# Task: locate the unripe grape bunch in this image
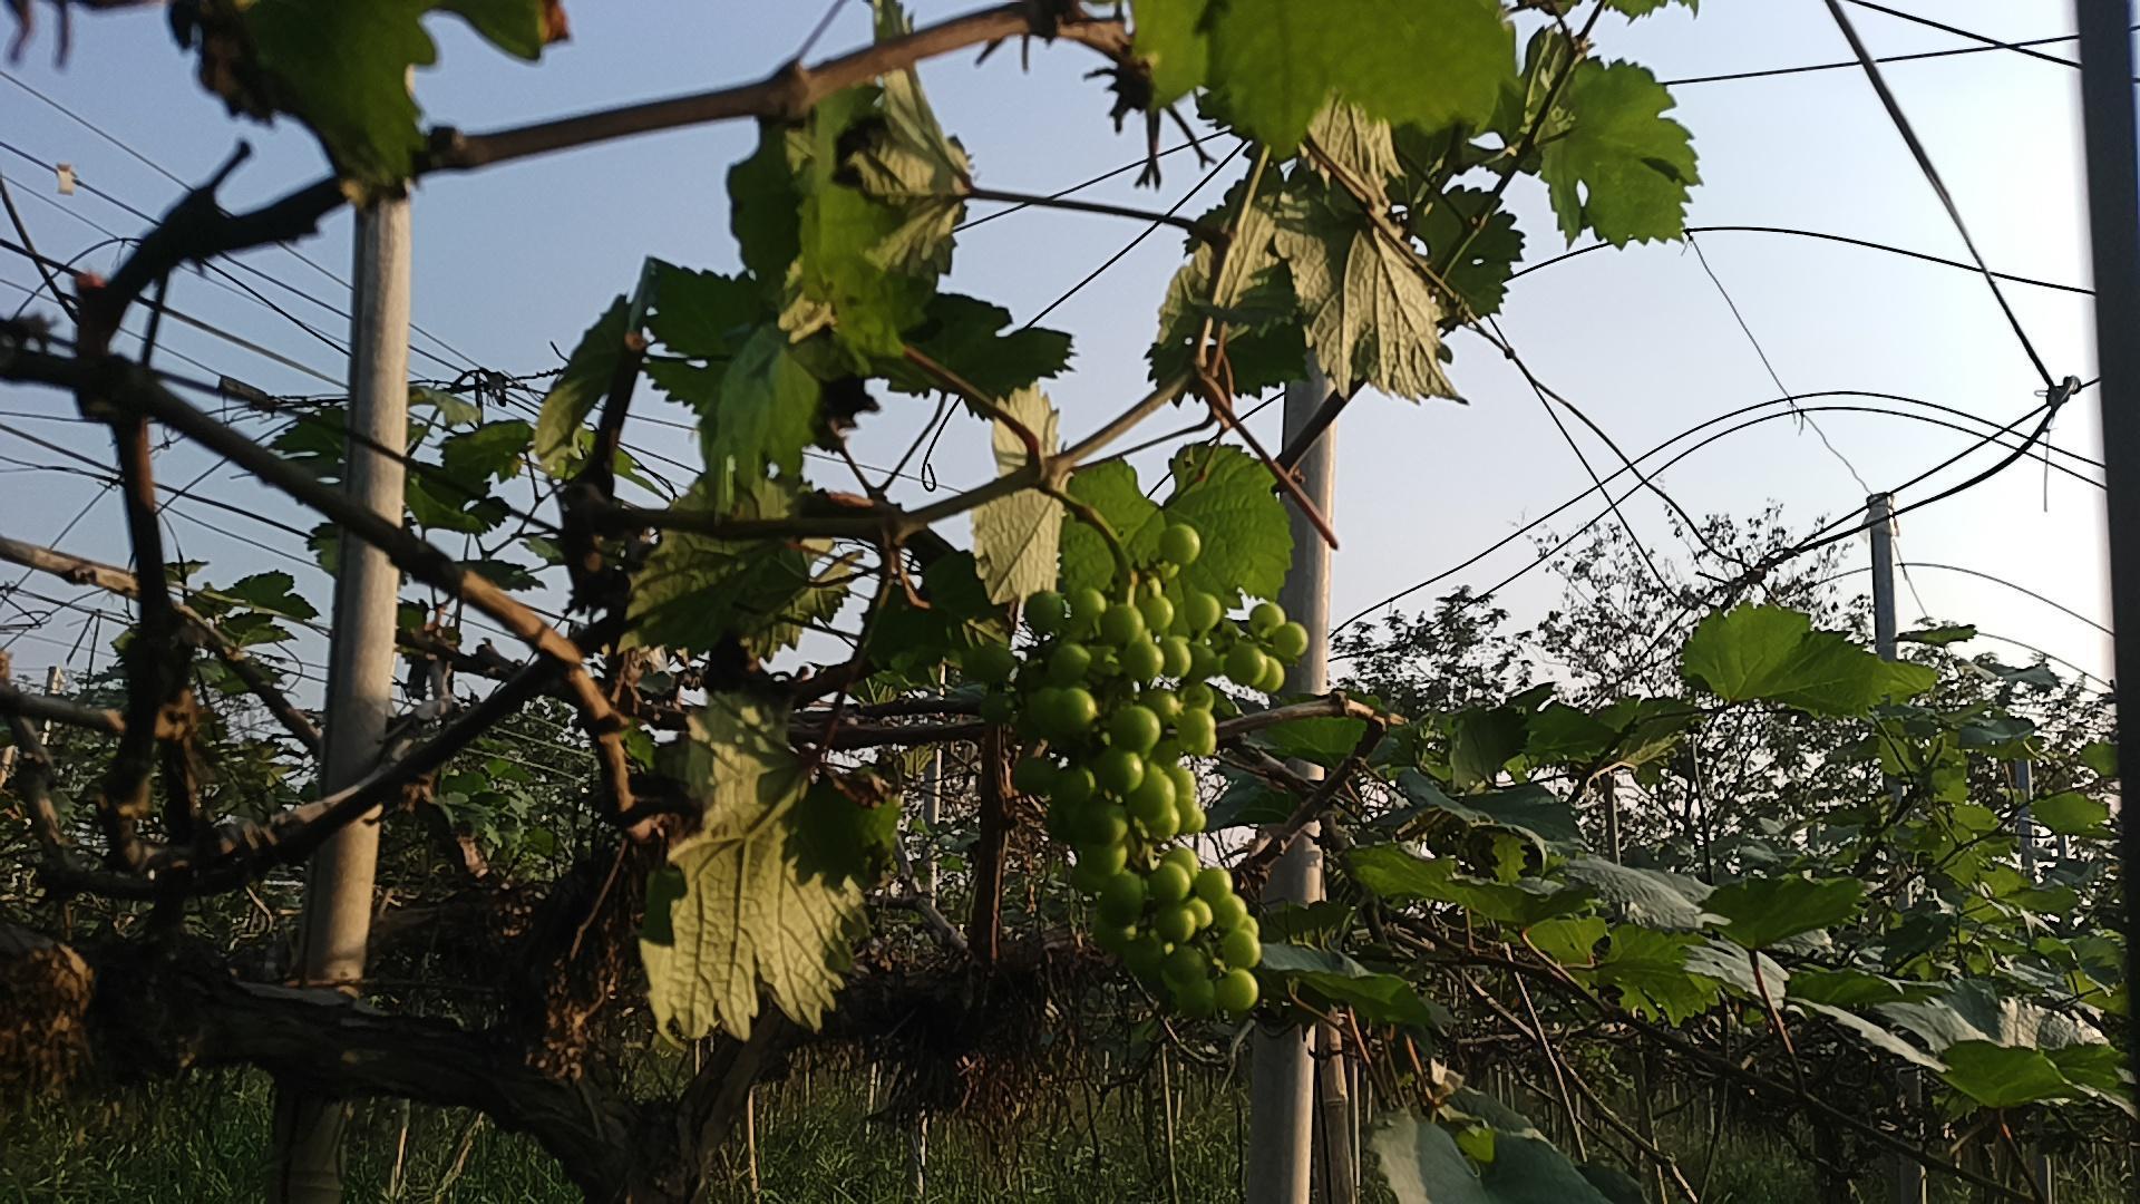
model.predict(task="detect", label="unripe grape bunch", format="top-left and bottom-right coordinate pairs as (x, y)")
top-left (1014, 523), bottom-right (1302, 1014)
